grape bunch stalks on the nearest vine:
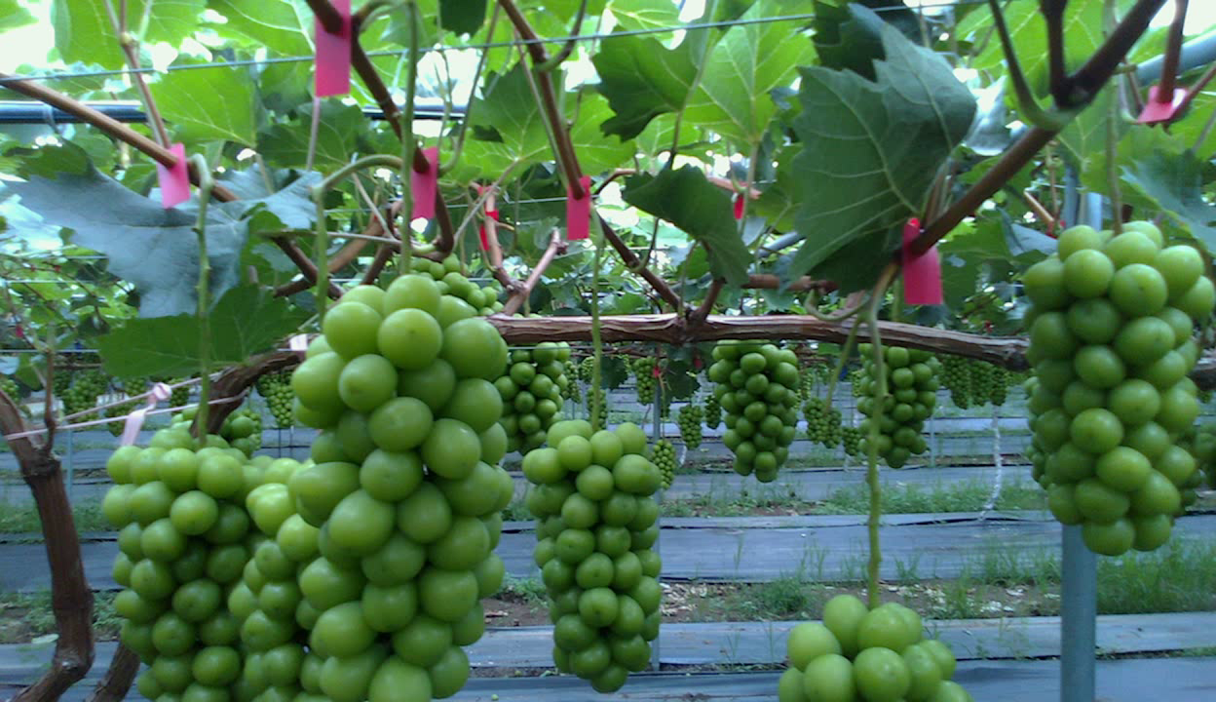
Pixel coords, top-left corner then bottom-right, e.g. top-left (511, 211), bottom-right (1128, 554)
top-left (307, 153), bottom-right (404, 327)
top-left (864, 266), bottom-right (899, 609)
top-left (393, 0), bottom-right (419, 276)
top-left (590, 202), bottom-right (603, 433)
top-left (1106, 76), bottom-right (1124, 235)
top-left (184, 154), bottom-right (211, 448)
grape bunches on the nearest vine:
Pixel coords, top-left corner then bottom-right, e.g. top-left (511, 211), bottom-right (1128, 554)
top-left (1021, 218), bottom-right (1215, 556)
top-left (101, 428), bottom-right (274, 701)
top-left (226, 456), bottom-right (329, 701)
top-left (521, 420), bottom-right (662, 693)
top-left (288, 273), bottom-right (515, 701)
top-left (777, 596), bottom-right (969, 701)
